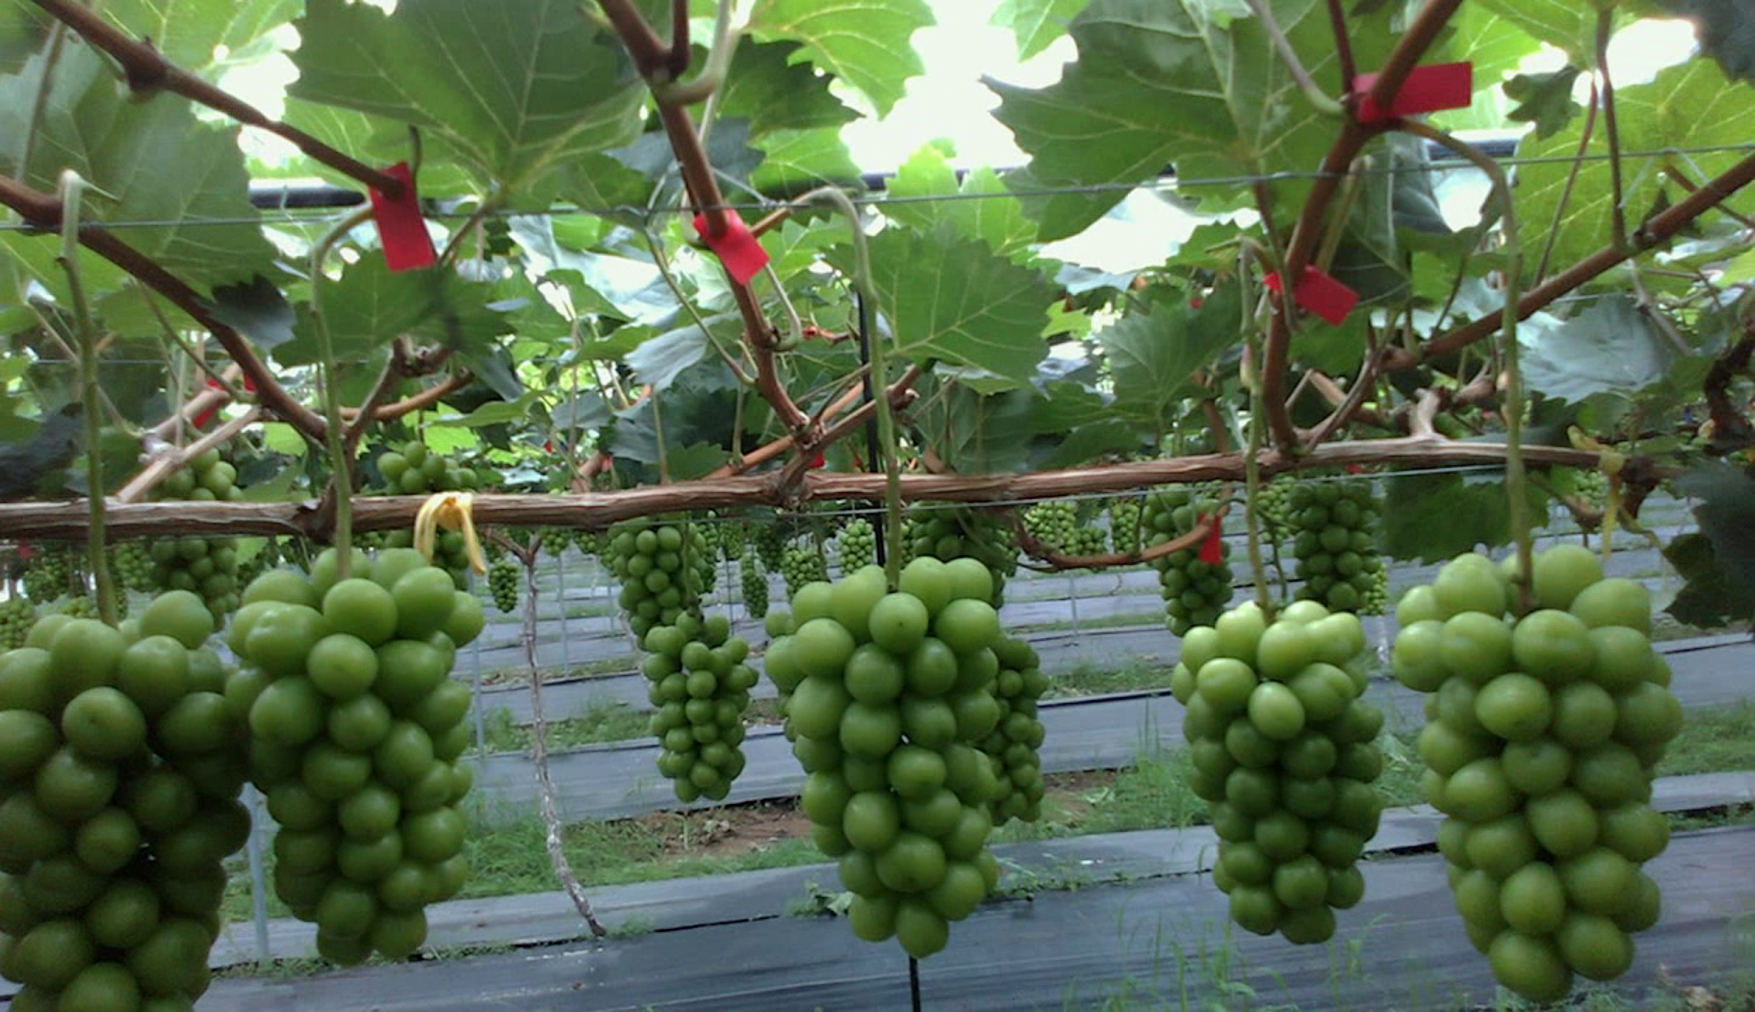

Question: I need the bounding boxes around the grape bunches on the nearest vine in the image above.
[1392,544,1680,1001]
[764,557,1000,956]
[3,589,250,1009]
[1171,600,1387,942]
[222,548,485,966]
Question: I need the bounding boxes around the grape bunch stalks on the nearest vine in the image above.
[309,204,374,576]
[1398,118,1533,607]
[1242,235,1277,620]
[806,187,901,592]
[53,171,120,631]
